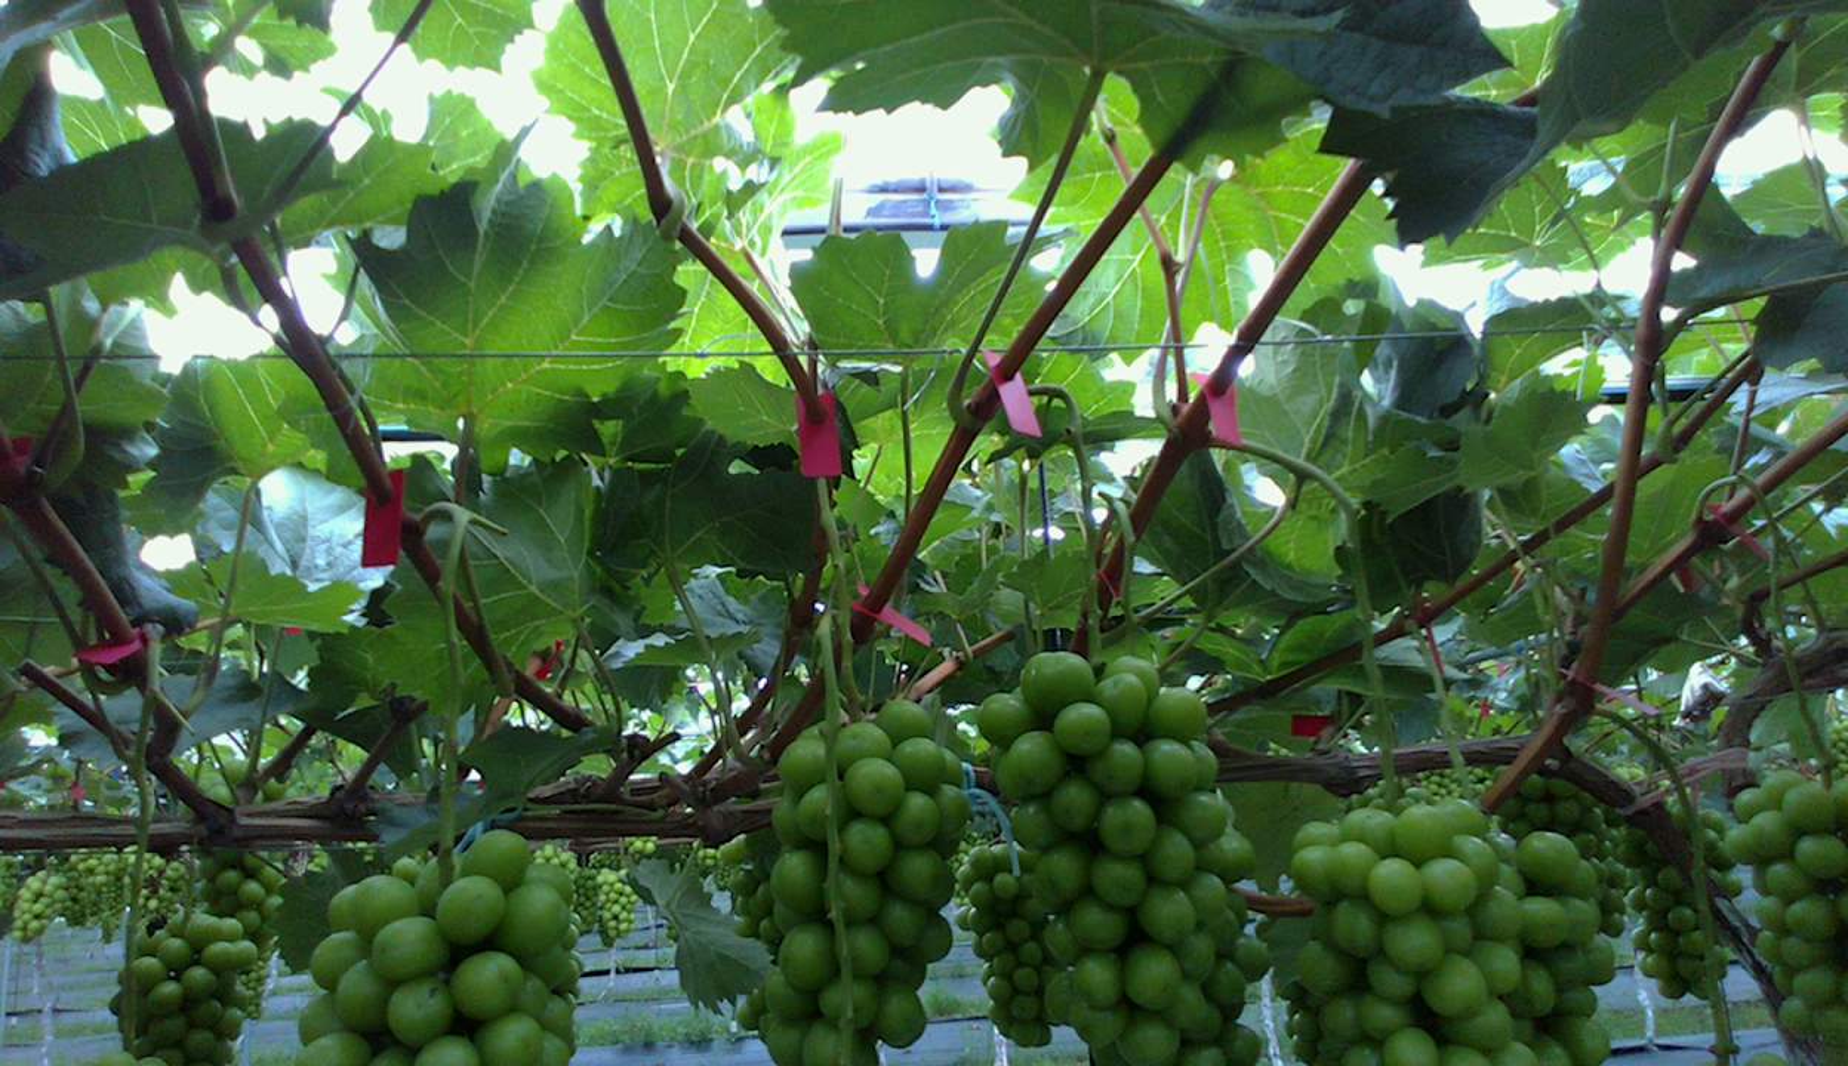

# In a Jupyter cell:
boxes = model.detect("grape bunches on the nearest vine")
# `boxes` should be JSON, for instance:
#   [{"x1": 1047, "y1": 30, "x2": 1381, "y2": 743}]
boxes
[
  {"x1": 767, "y1": 702, "x2": 970, "y2": 1065},
  {"x1": 62, "y1": 1053, "x2": 169, "y2": 1065},
  {"x1": 1290, "y1": 799, "x2": 1540, "y2": 1065},
  {"x1": 1488, "y1": 832, "x2": 1616, "y2": 1065},
  {"x1": 974, "y1": 650, "x2": 1272, "y2": 1065},
  {"x1": 295, "y1": 828, "x2": 577, "y2": 1065},
  {"x1": 1725, "y1": 767, "x2": 1847, "y2": 1065}
]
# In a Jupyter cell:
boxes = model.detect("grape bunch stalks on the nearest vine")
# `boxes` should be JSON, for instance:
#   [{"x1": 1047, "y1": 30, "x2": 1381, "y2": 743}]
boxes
[
  {"x1": 1410, "y1": 622, "x2": 1473, "y2": 801},
  {"x1": 817, "y1": 477, "x2": 863, "y2": 724},
  {"x1": 416, "y1": 500, "x2": 506, "y2": 887},
  {"x1": 1241, "y1": 438, "x2": 1396, "y2": 813},
  {"x1": 1694, "y1": 471, "x2": 1838, "y2": 789},
  {"x1": 120, "y1": 634, "x2": 194, "y2": 1051},
  {"x1": 1026, "y1": 383, "x2": 1106, "y2": 678}
]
